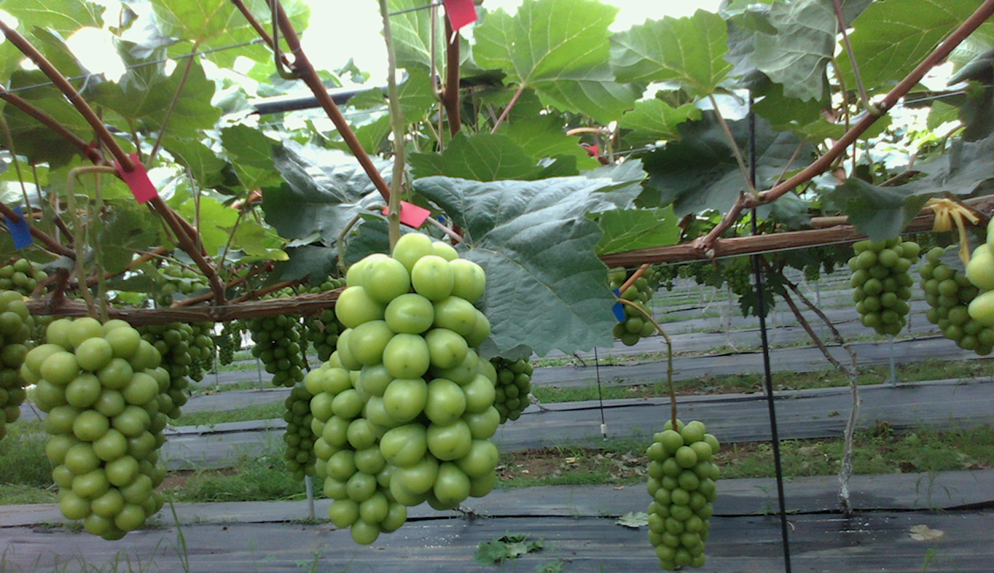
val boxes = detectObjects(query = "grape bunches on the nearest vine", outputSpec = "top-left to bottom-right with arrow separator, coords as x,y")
22,318 -> 171,542
303,353 -> 408,547
332,232 -> 500,510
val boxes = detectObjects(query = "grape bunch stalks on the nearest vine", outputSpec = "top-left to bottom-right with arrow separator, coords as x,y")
380,0 -> 405,250
68,167 -> 110,318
